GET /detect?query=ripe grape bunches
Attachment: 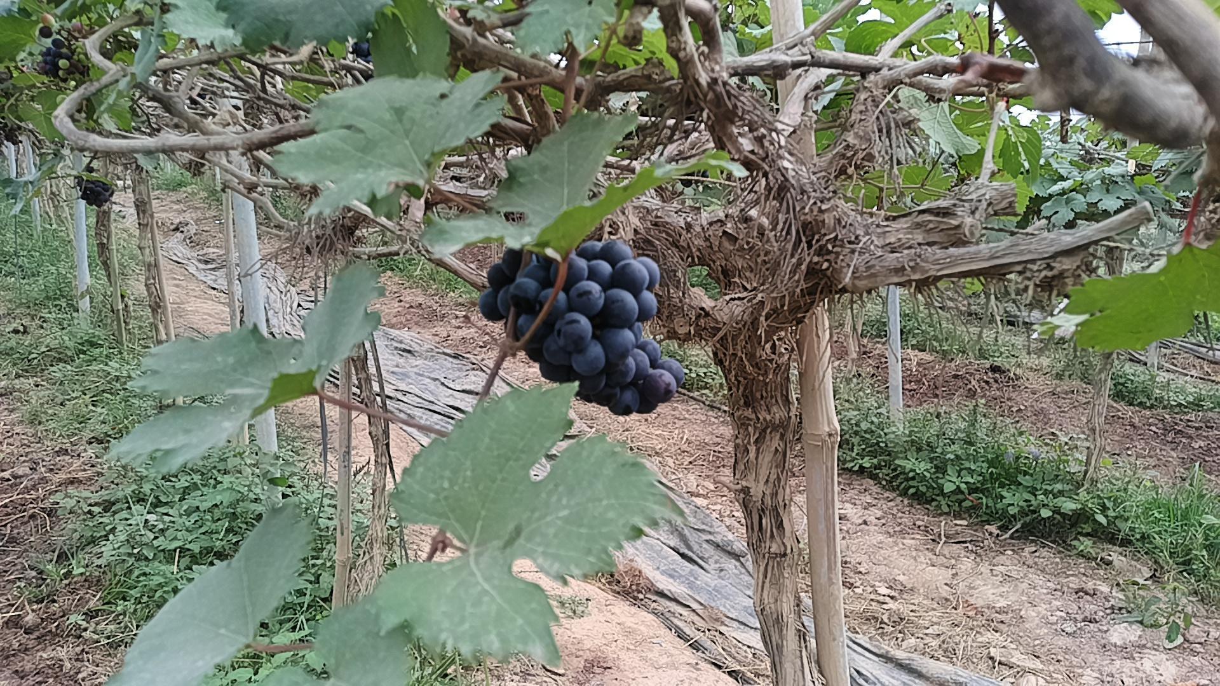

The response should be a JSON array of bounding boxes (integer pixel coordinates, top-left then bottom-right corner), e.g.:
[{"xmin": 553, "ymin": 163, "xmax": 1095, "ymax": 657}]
[
  {"xmin": 480, "ymin": 241, "xmax": 684, "ymax": 416},
  {"xmin": 678, "ymin": 168, "xmax": 709, "ymax": 189},
  {"xmin": 75, "ymin": 166, "xmax": 116, "ymax": 208}
]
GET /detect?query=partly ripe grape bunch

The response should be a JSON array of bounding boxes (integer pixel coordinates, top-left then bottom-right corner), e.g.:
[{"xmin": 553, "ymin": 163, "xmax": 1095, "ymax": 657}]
[{"xmin": 36, "ymin": 11, "xmax": 90, "ymax": 105}]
